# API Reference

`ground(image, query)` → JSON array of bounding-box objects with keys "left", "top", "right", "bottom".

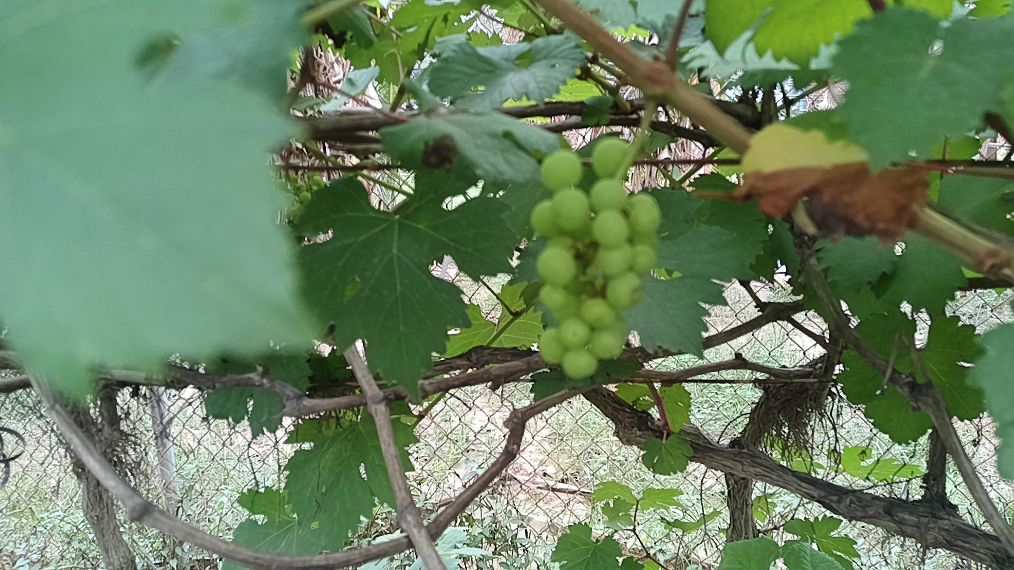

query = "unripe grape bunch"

[{"left": 530, "top": 132, "right": 661, "bottom": 379}]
